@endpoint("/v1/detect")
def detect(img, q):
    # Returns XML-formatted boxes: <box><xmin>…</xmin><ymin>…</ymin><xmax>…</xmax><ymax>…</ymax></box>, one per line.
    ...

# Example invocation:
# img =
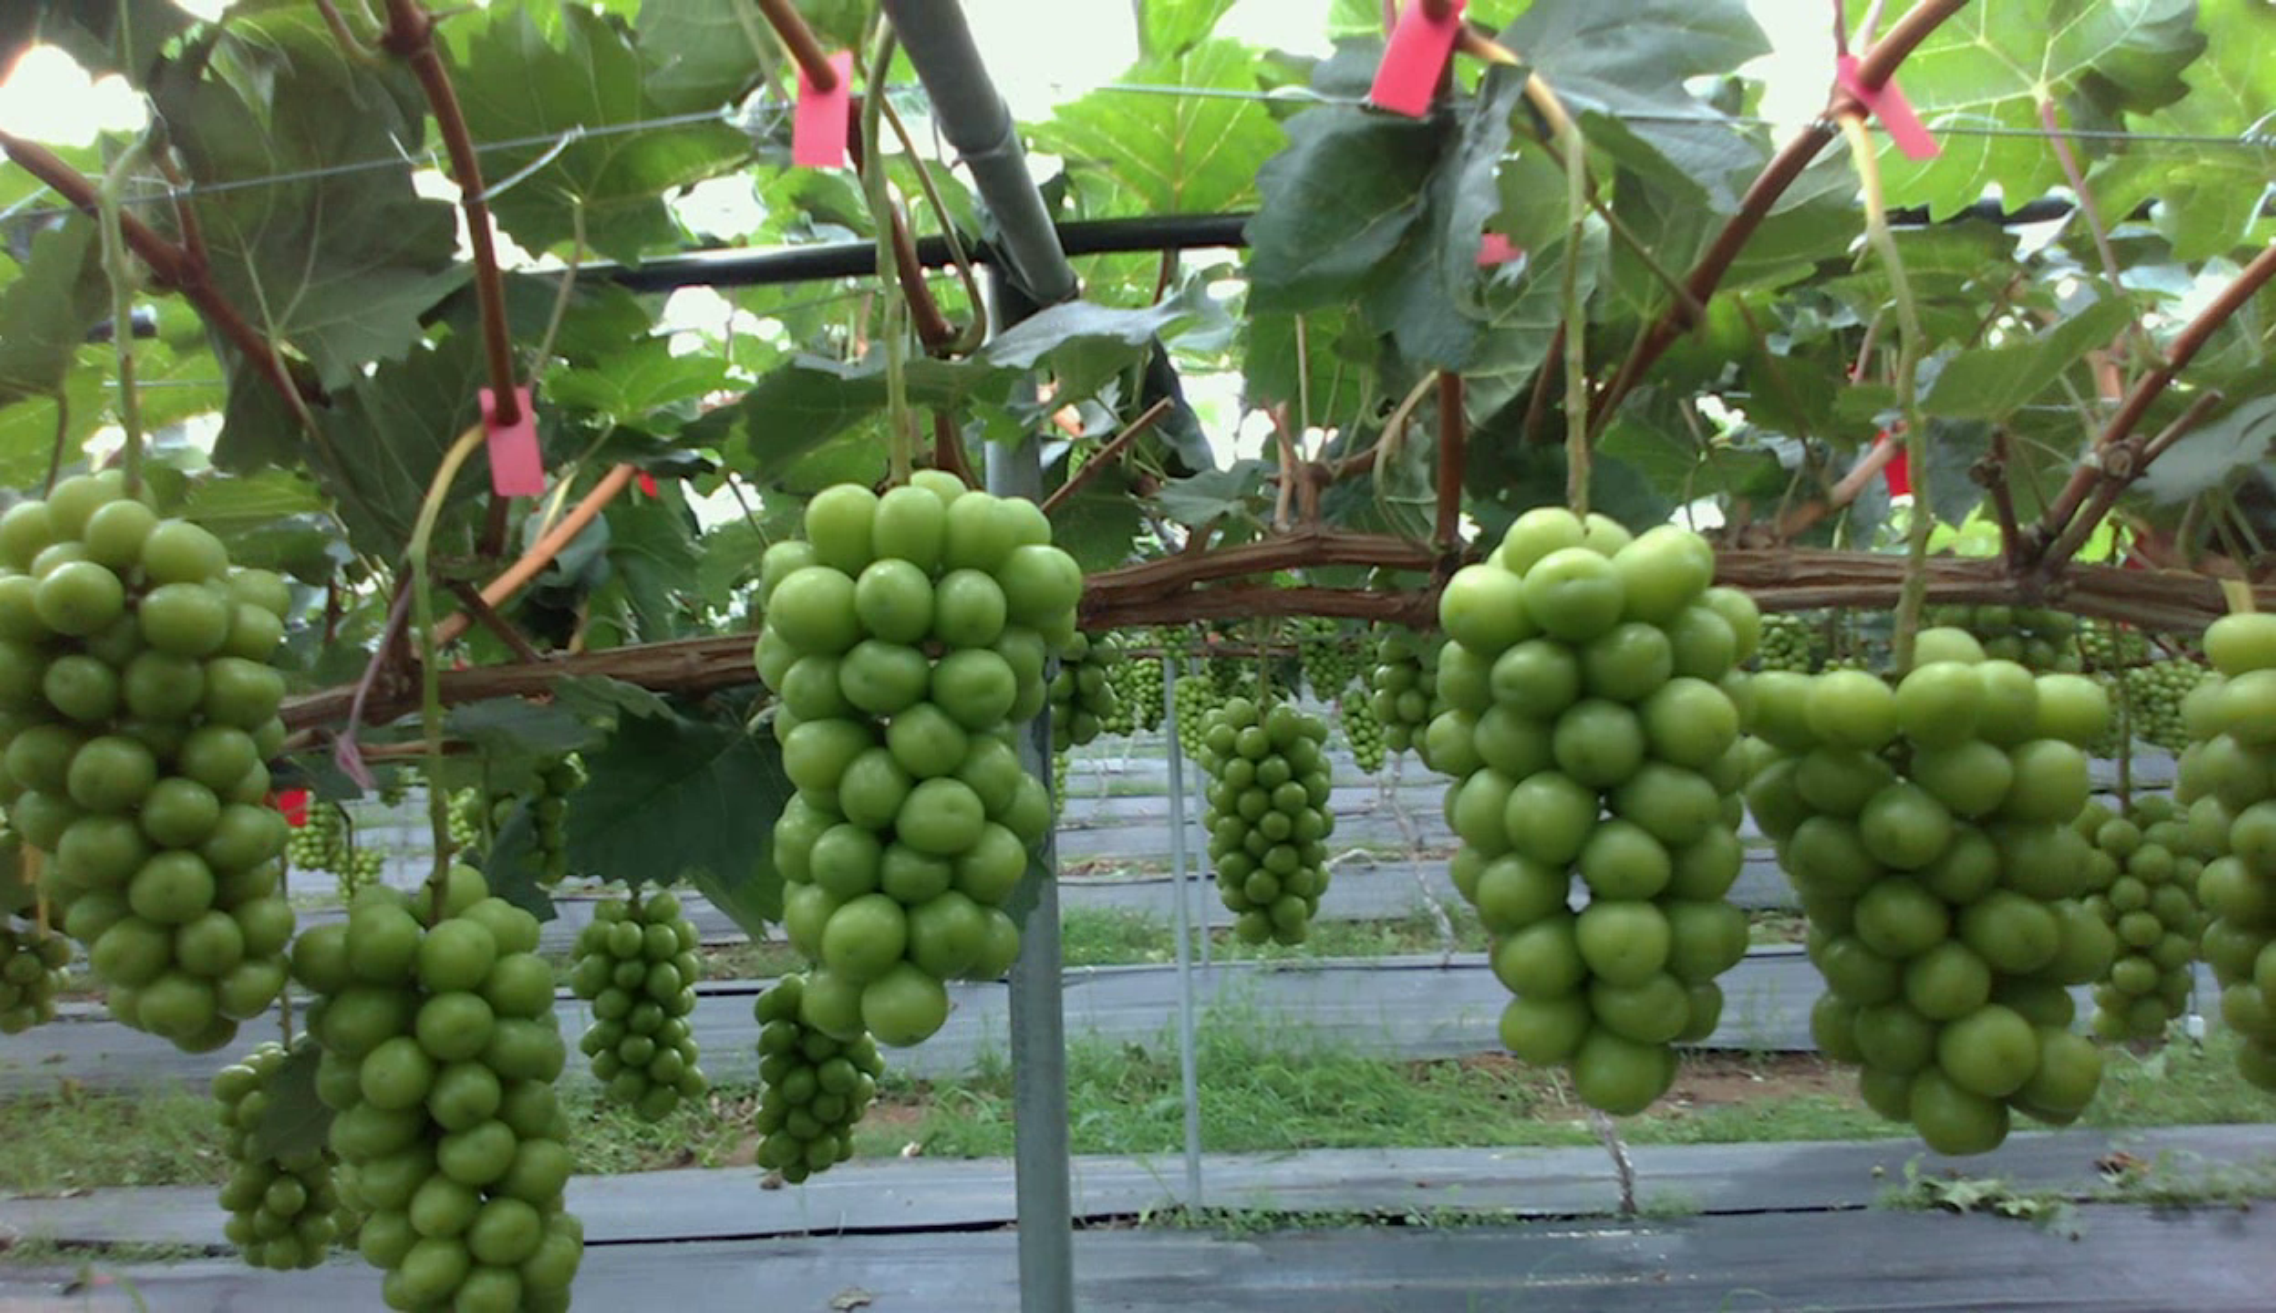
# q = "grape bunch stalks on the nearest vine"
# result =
<box><xmin>410</xmin><ymin>425</ymin><xmax>487</xmax><ymax>921</ymax></box>
<box><xmin>91</xmin><ymin>139</ymin><xmax>155</xmax><ymax>500</ymax></box>
<box><xmin>857</xmin><ymin>13</ymin><xmax>910</xmax><ymax>487</ymax></box>
<box><xmin>1455</xmin><ymin>26</ymin><xmax>1587</xmax><ymax>518</ymax></box>
<box><xmin>1842</xmin><ymin>115</ymin><xmax>1933</xmax><ymax>675</ymax></box>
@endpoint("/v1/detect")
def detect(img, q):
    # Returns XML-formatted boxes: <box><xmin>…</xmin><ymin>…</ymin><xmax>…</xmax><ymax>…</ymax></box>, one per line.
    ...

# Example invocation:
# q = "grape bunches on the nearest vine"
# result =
<box><xmin>292</xmin><ymin>863</ymin><xmax>584</xmax><ymax>1311</ymax></box>
<box><xmin>2176</xmin><ymin>613</ymin><xmax>2272</xmax><ymax>1092</ymax></box>
<box><xmin>0</xmin><ymin>467</ymin><xmax>294</xmax><ymax>1052</ymax></box>
<box><xmin>1426</xmin><ymin>507</ymin><xmax>1758</xmax><ymax>1114</ymax></box>
<box><xmin>753</xmin><ymin>472</ymin><xmax>1083</xmax><ymax>1047</ymax></box>
<box><xmin>1738</xmin><ymin>629</ymin><xmax>2116</xmax><ymax>1156</ymax></box>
